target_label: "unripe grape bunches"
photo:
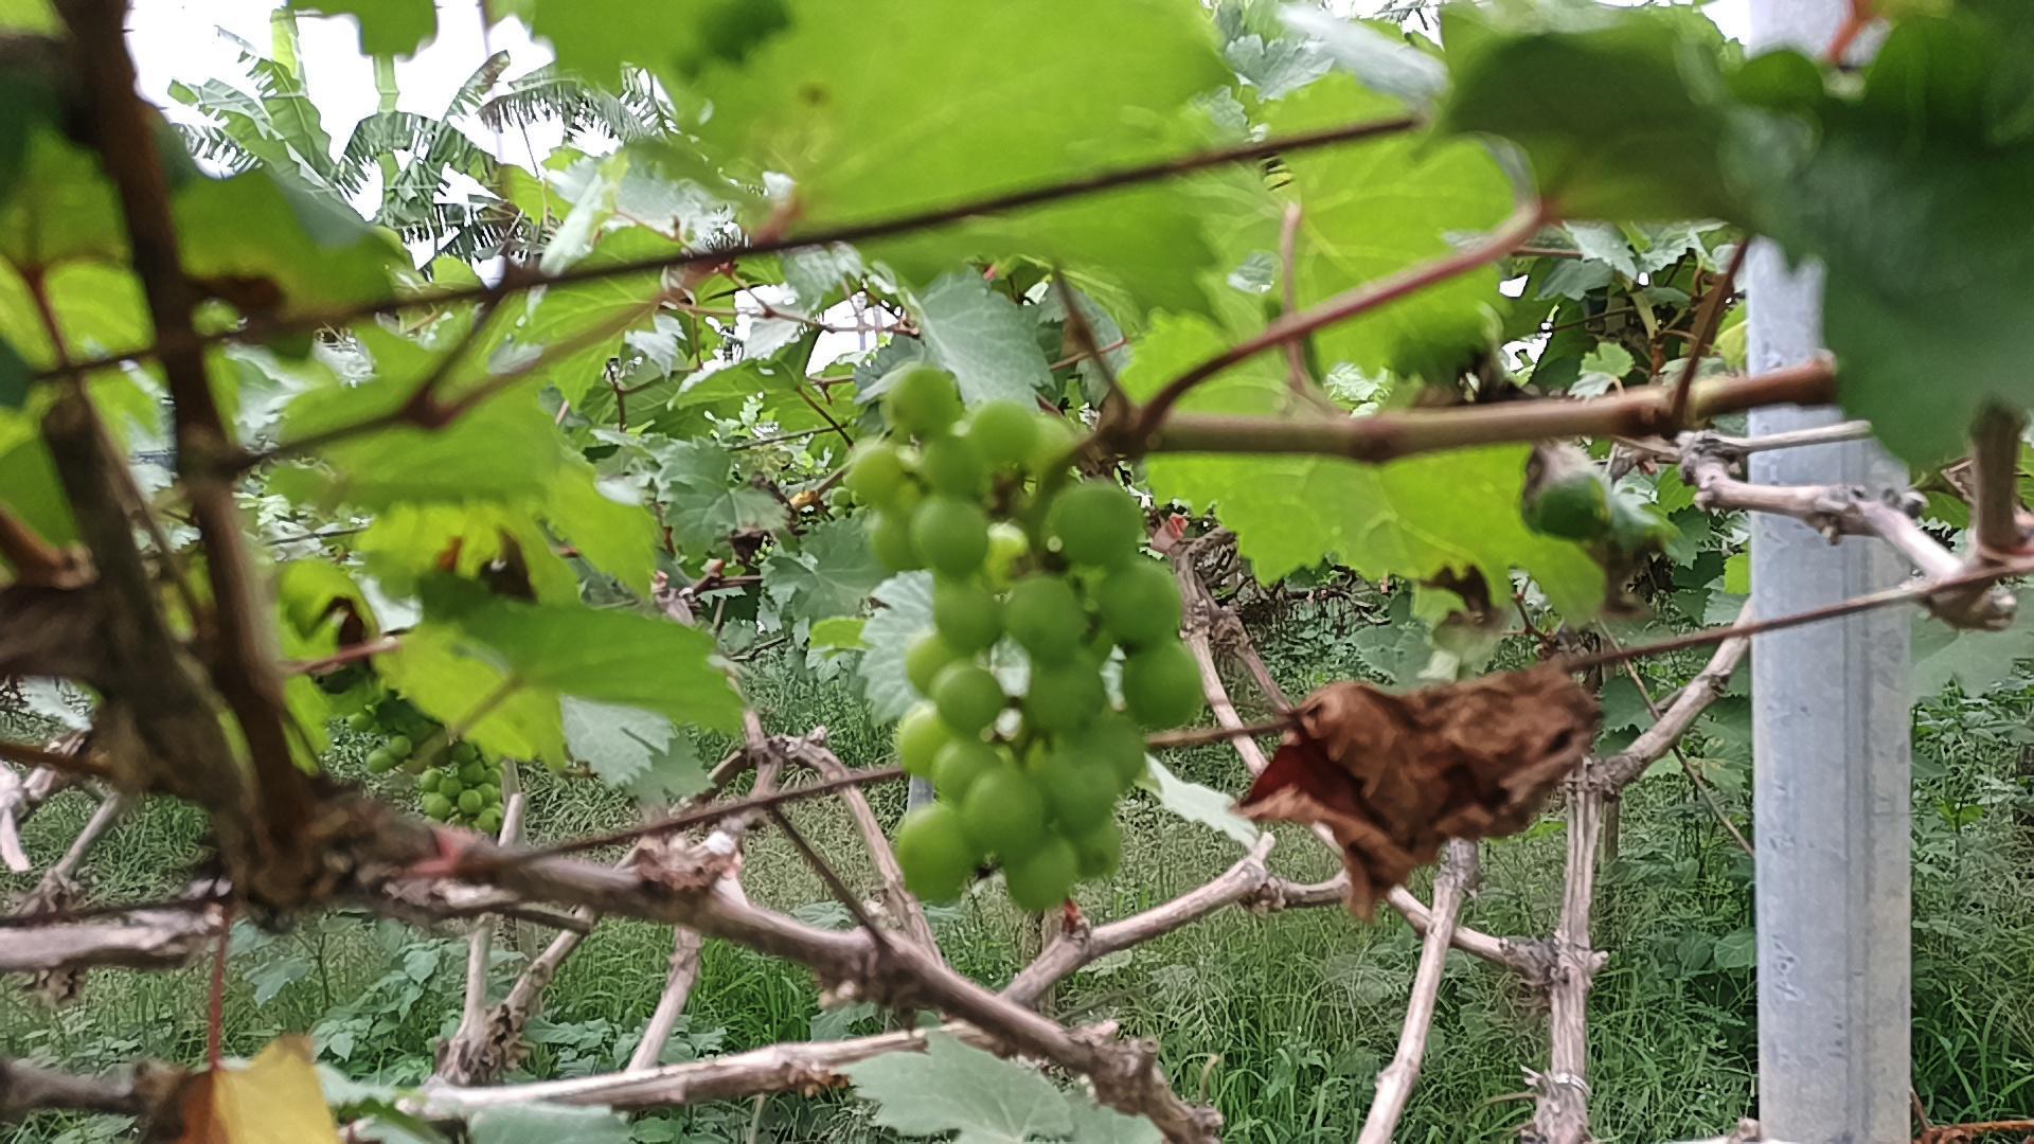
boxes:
[850,368,1202,909]
[349,690,504,833]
